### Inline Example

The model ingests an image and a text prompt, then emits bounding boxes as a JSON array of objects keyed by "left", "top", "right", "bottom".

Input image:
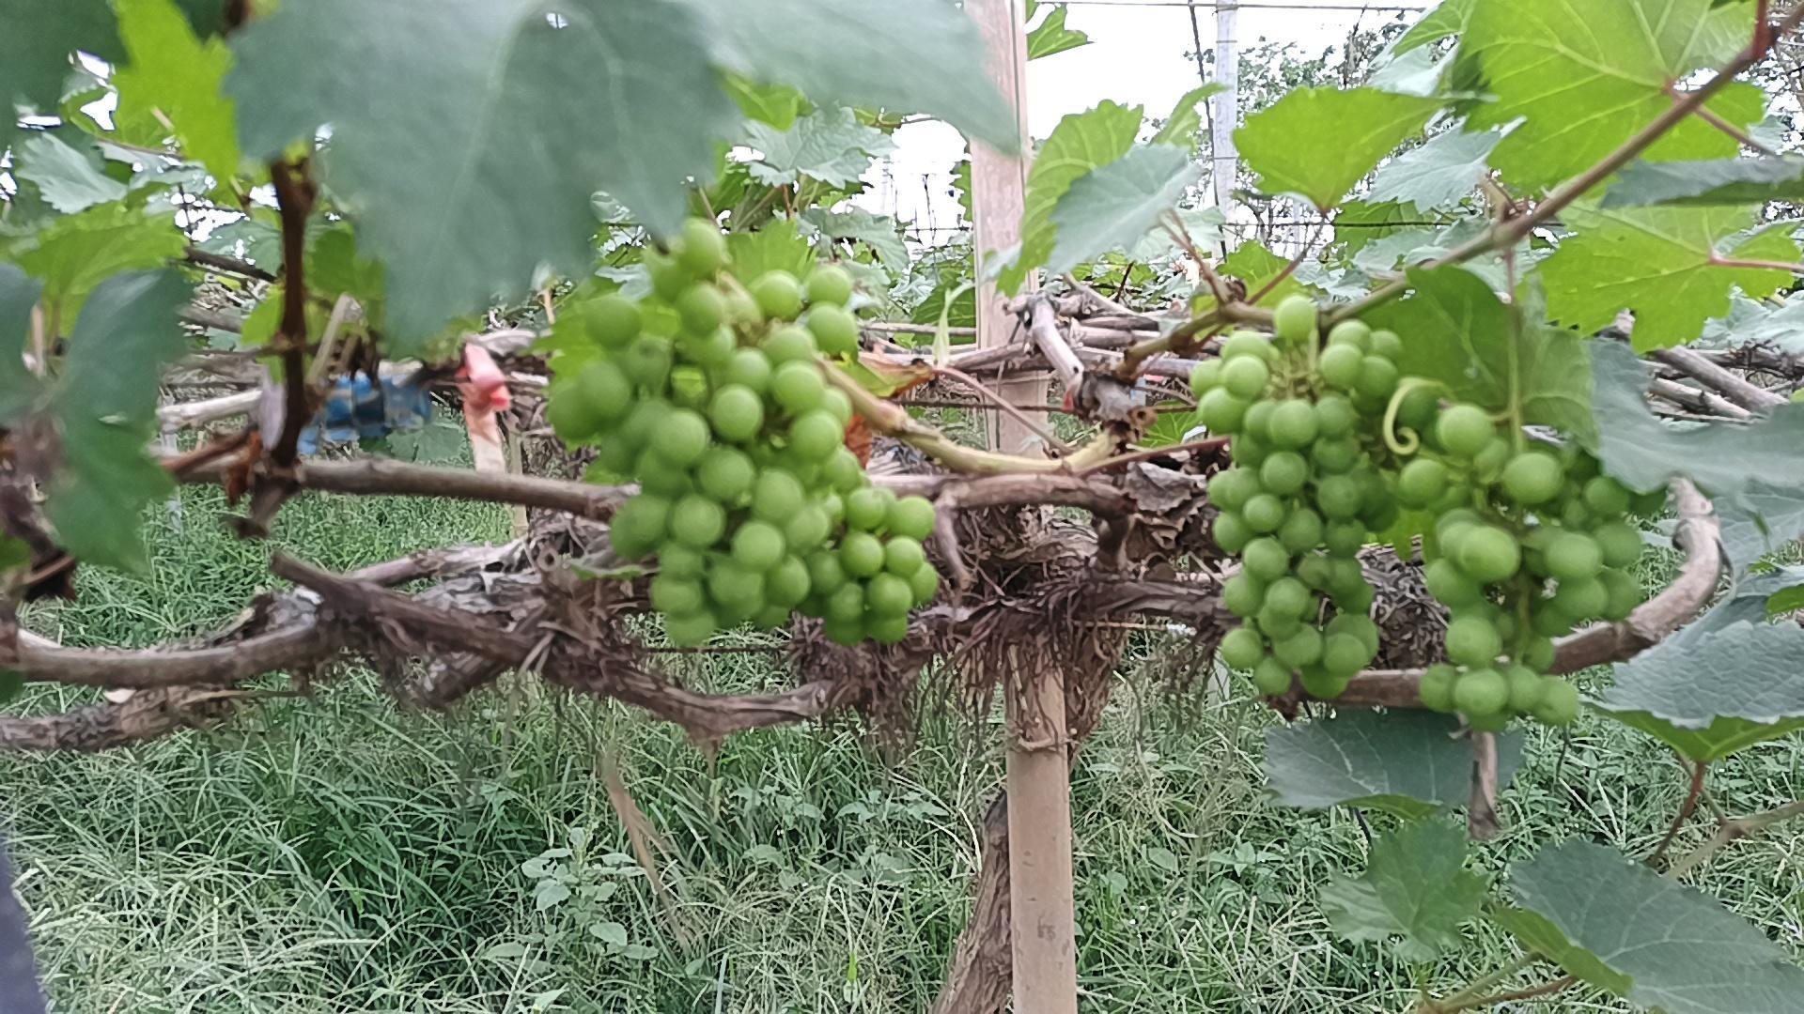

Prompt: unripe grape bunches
[
  {"left": 547, "top": 219, "right": 937, "bottom": 644},
  {"left": 1191, "top": 295, "right": 1399, "bottom": 699},
  {"left": 1419, "top": 406, "right": 1653, "bottom": 730}
]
